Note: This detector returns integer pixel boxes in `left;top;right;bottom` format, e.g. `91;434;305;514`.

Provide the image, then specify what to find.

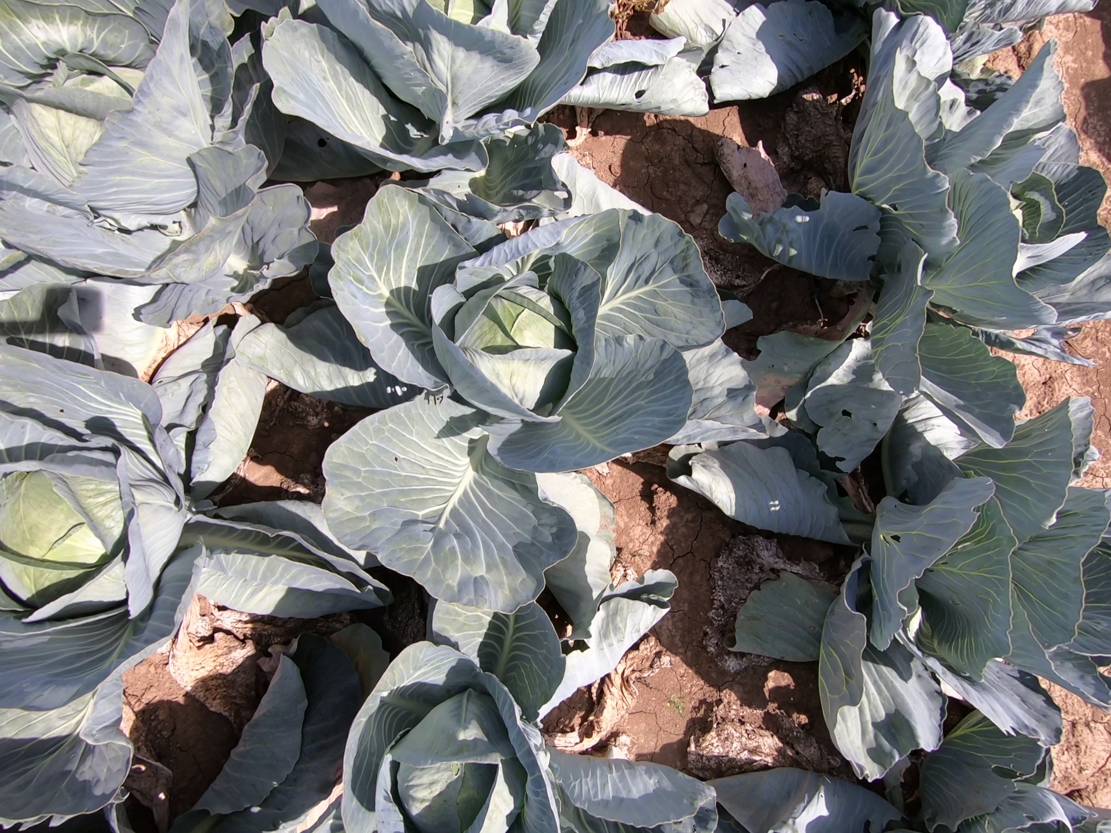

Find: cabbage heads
364;3;509;111
1;447;172;618
926;173;1025;271
458;281;584;413
397;699;524;831
17;62;203;212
